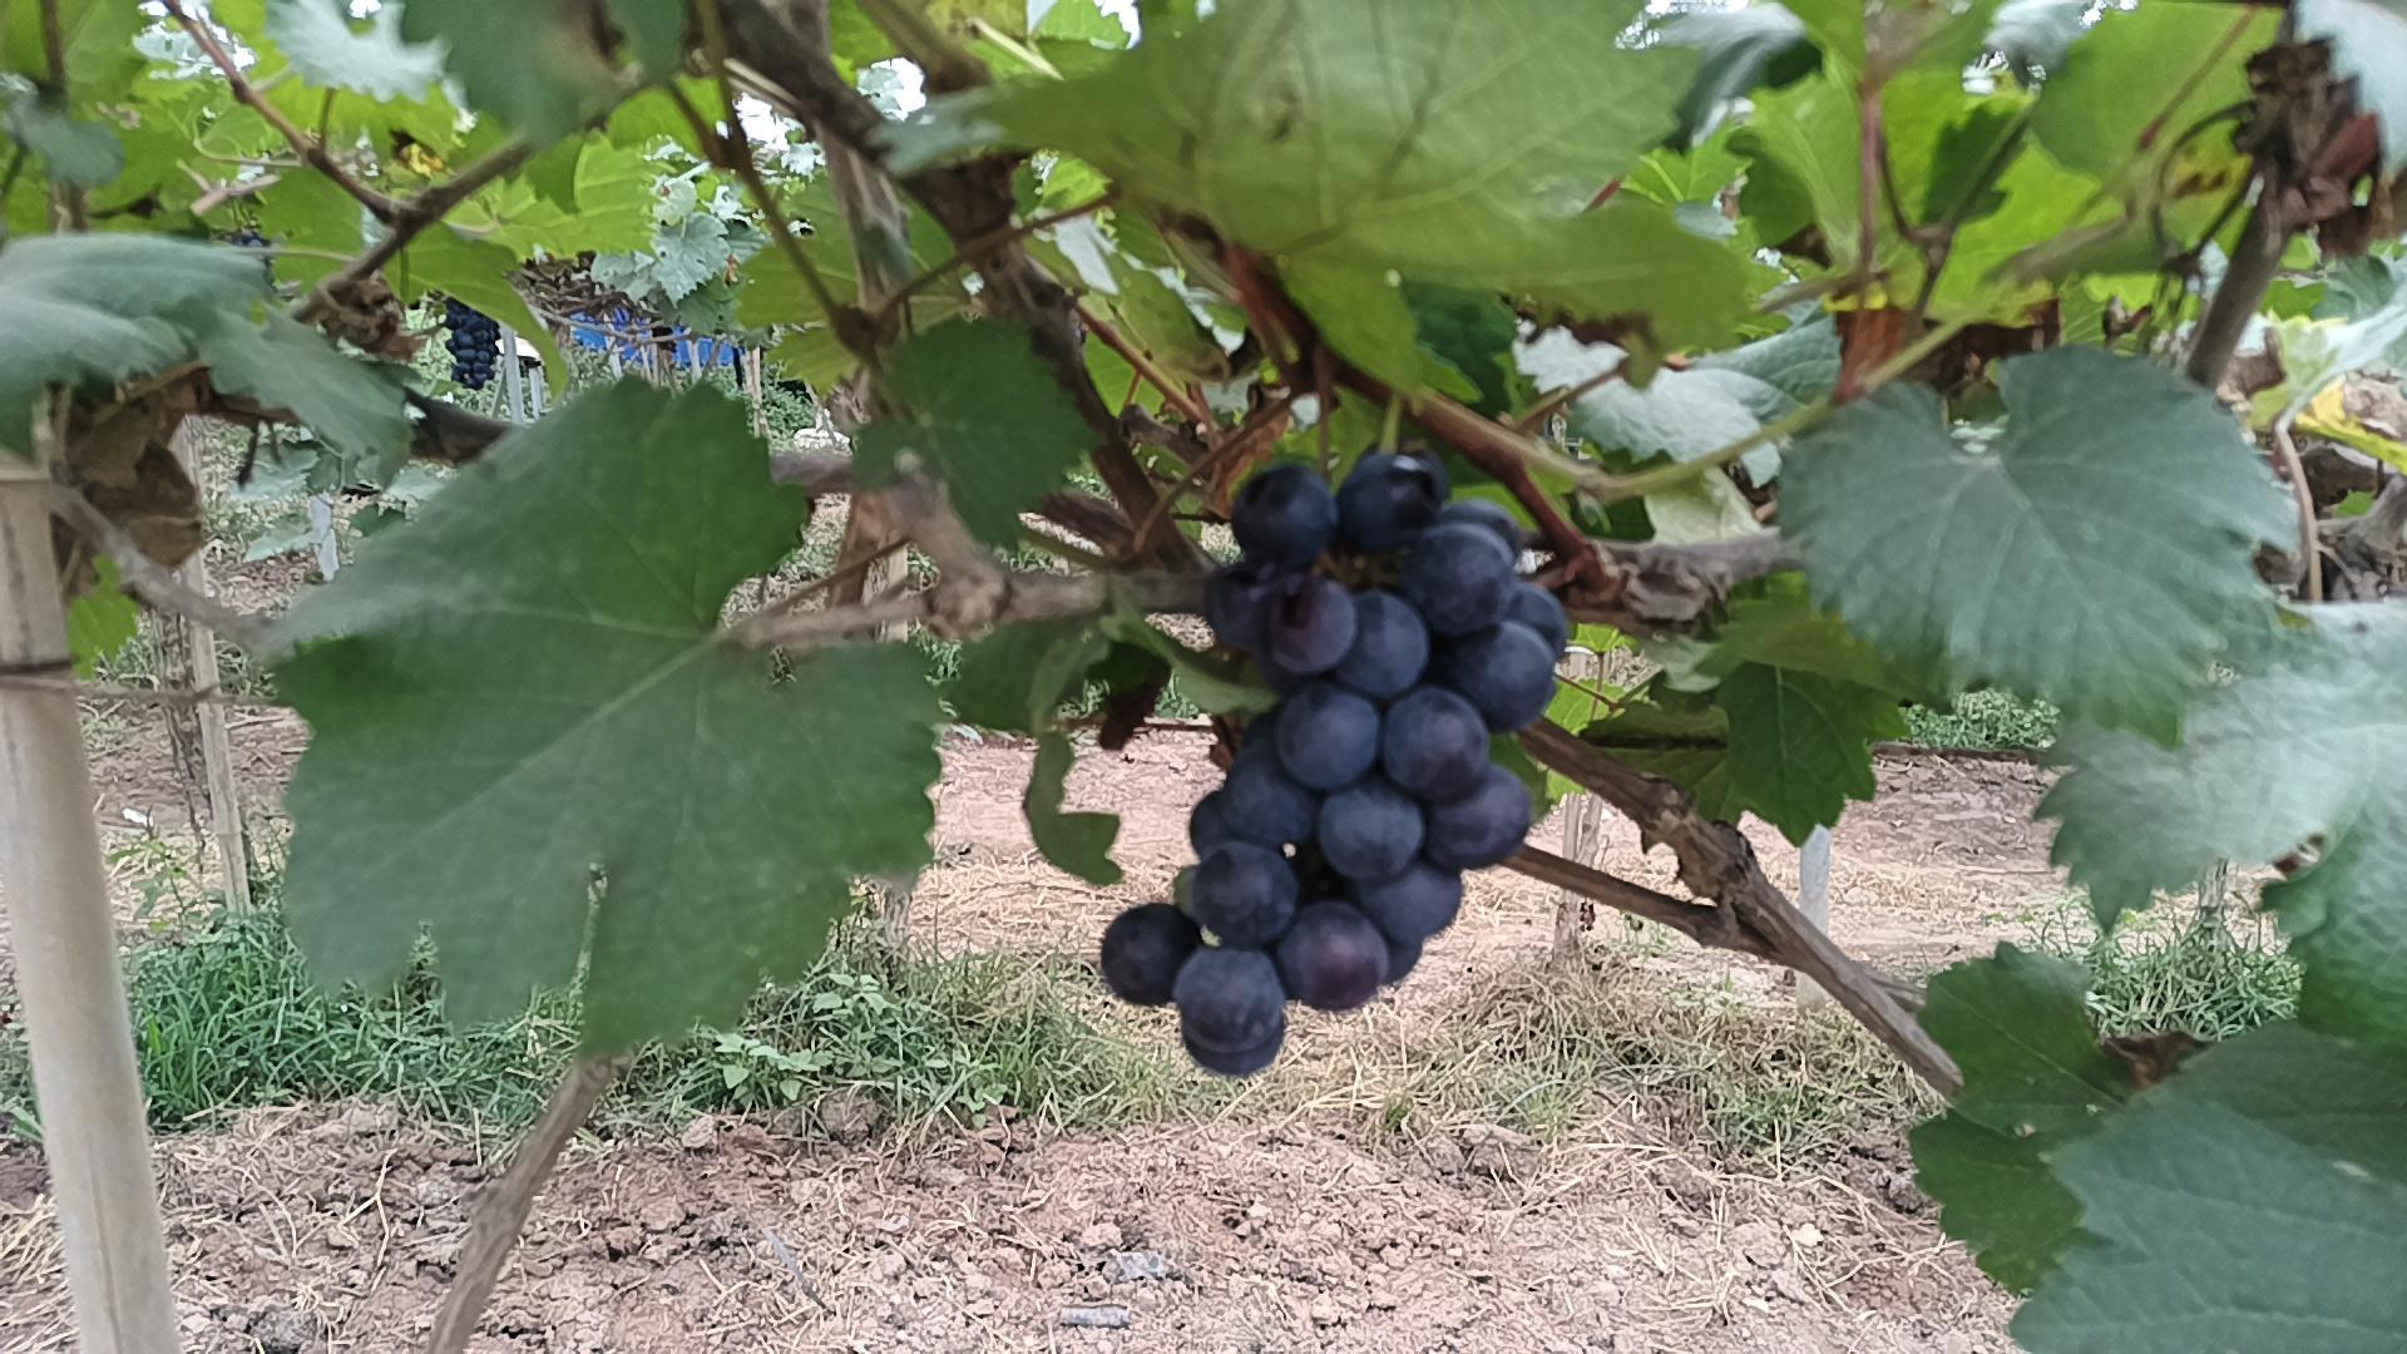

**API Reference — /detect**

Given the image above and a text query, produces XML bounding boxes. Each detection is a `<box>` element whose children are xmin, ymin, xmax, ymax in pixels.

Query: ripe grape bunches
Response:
<box><xmin>427</xmin><ymin>292</ymin><xmax>500</xmax><ymax>390</ymax></box>
<box><xmin>1101</xmin><ymin>454</ymin><xmax>1567</xmax><ymax>1074</ymax></box>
